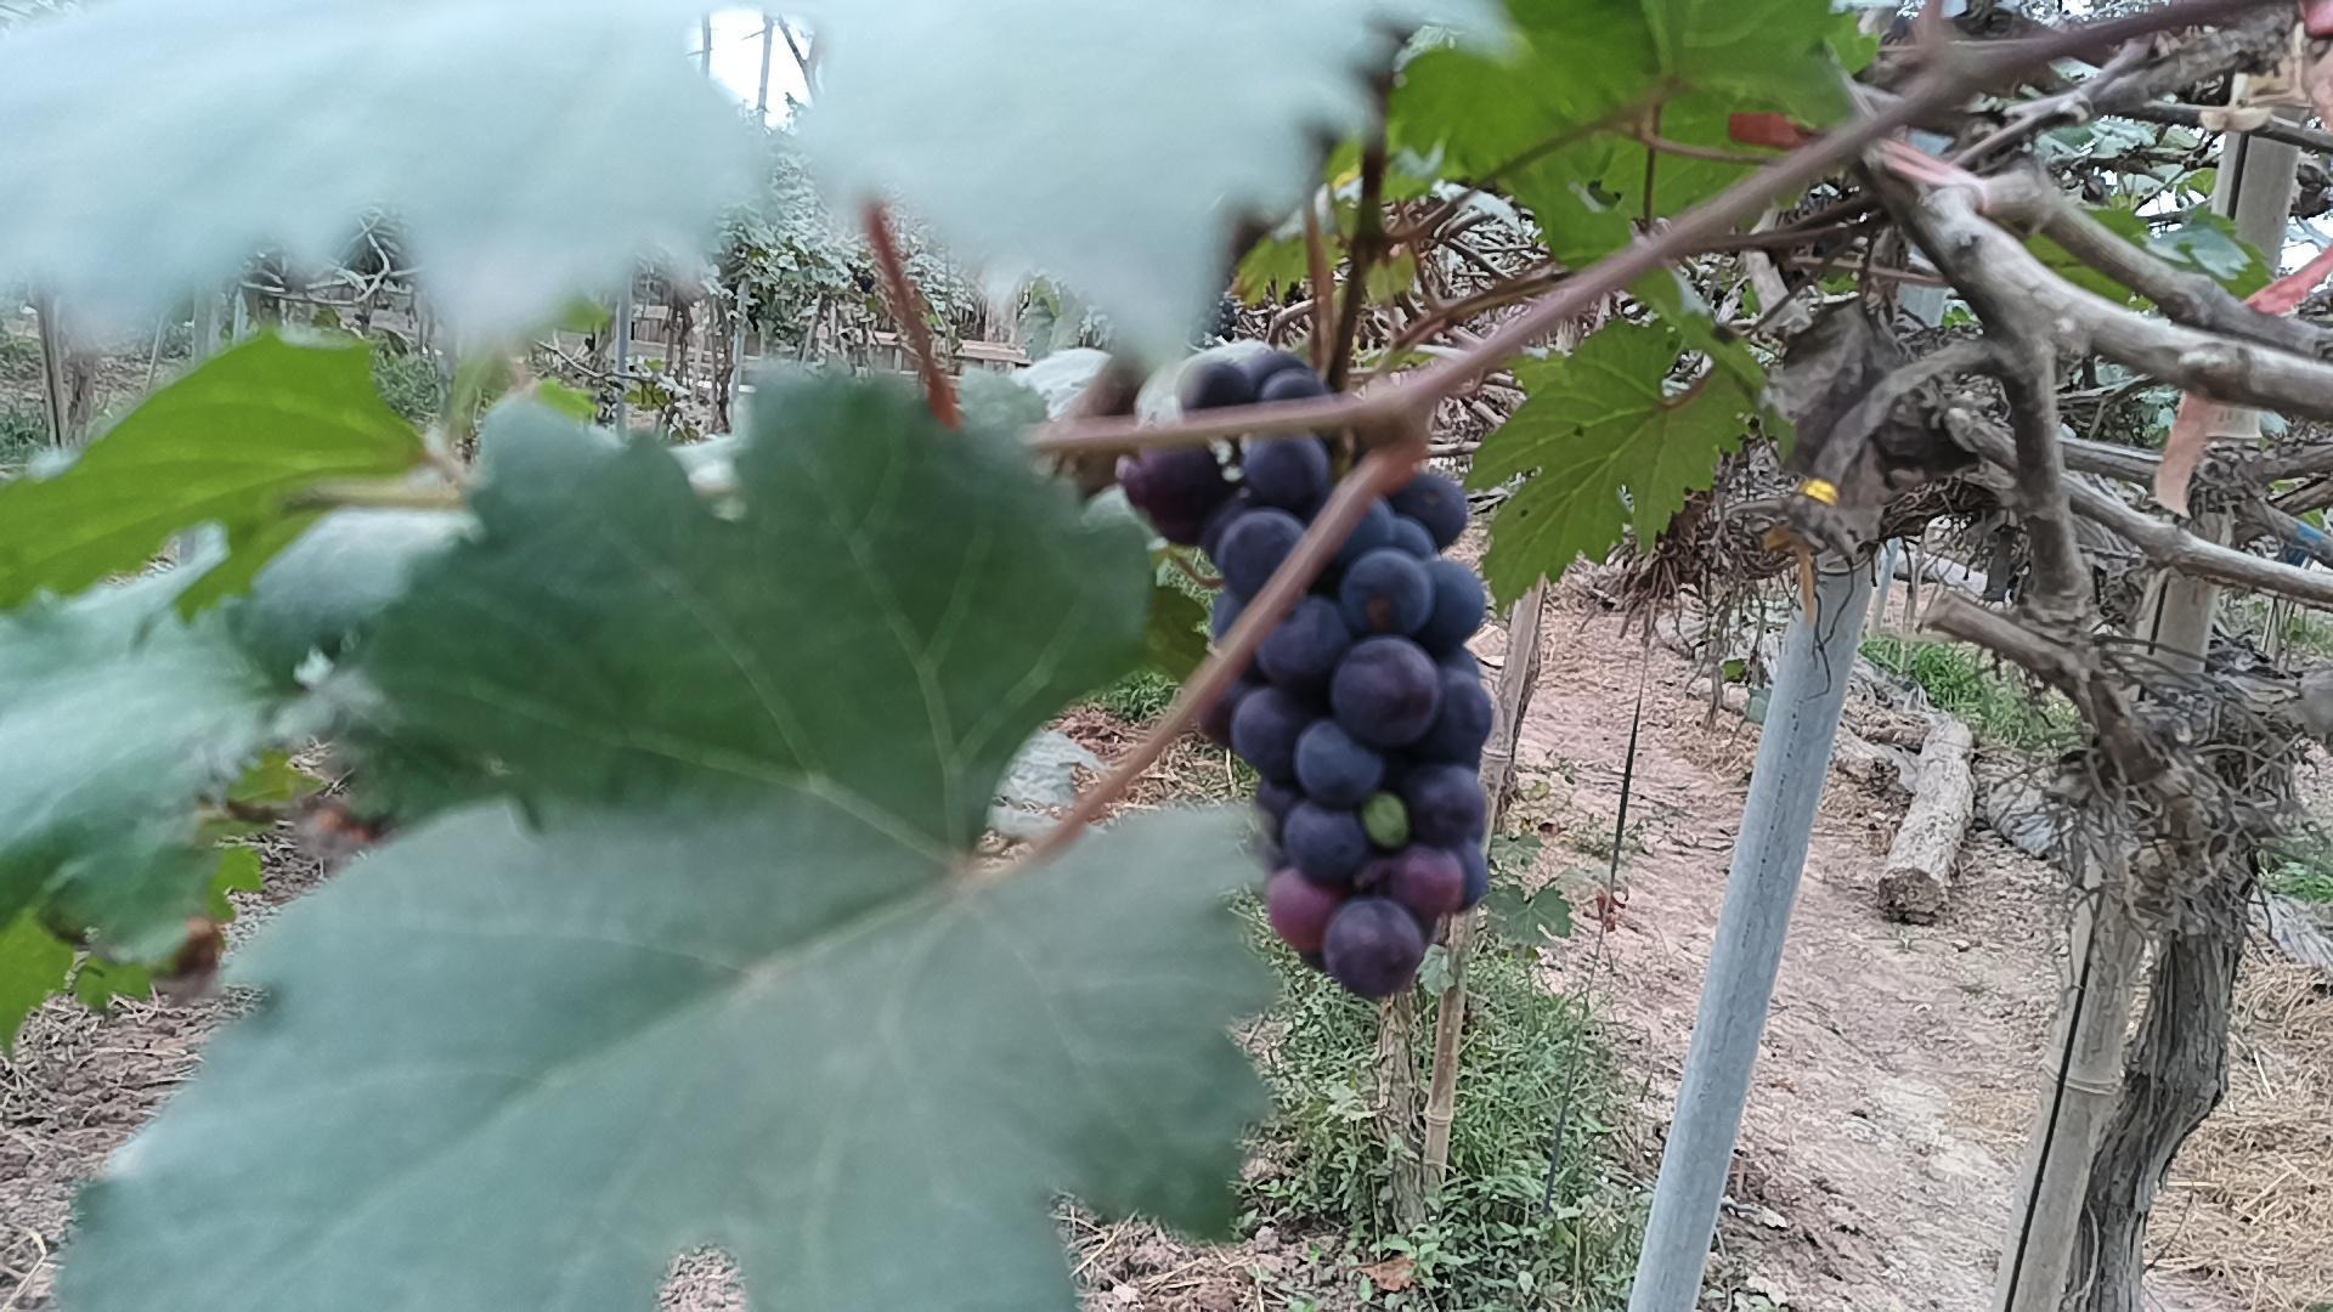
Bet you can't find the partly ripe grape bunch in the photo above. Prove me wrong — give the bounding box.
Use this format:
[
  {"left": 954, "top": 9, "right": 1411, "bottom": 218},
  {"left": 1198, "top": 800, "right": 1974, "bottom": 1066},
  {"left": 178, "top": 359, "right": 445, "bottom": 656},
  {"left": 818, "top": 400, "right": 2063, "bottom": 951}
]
[{"left": 1122, "top": 354, "right": 1493, "bottom": 997}]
